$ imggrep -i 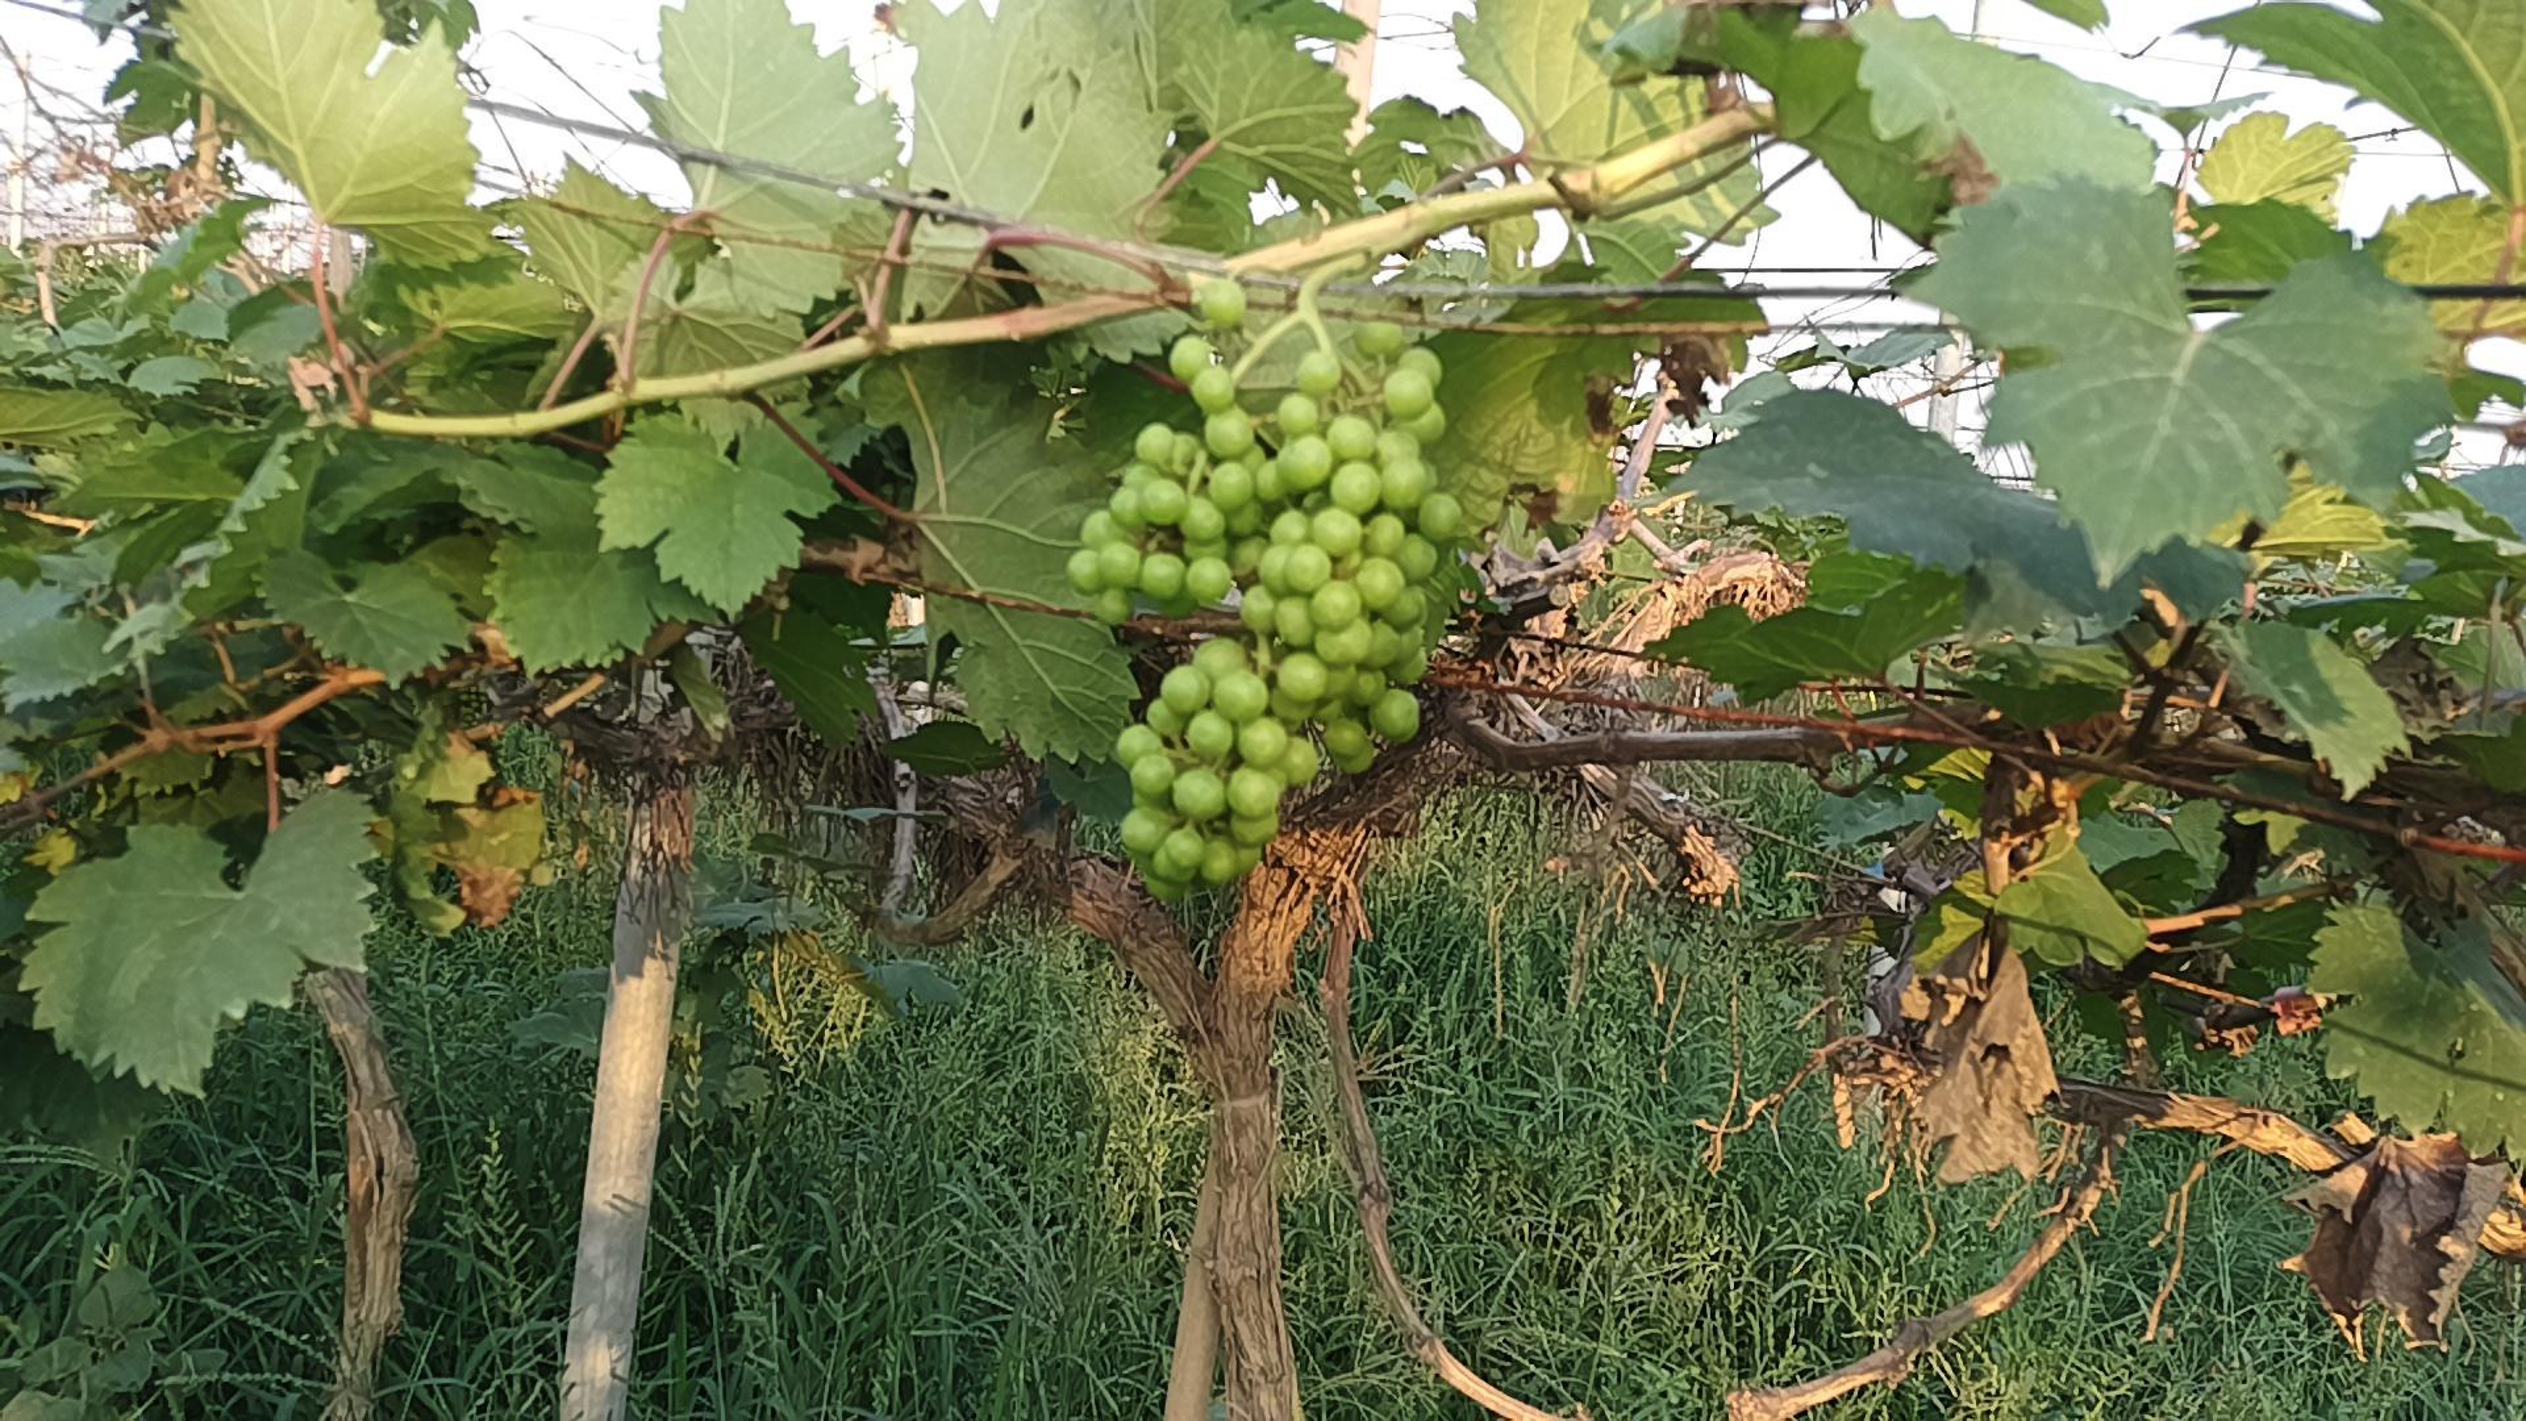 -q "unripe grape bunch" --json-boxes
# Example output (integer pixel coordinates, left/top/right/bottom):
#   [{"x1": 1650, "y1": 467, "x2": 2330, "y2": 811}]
[{"x1": 1067, "y1": 280, "x2": 1460, "y2": 896}]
